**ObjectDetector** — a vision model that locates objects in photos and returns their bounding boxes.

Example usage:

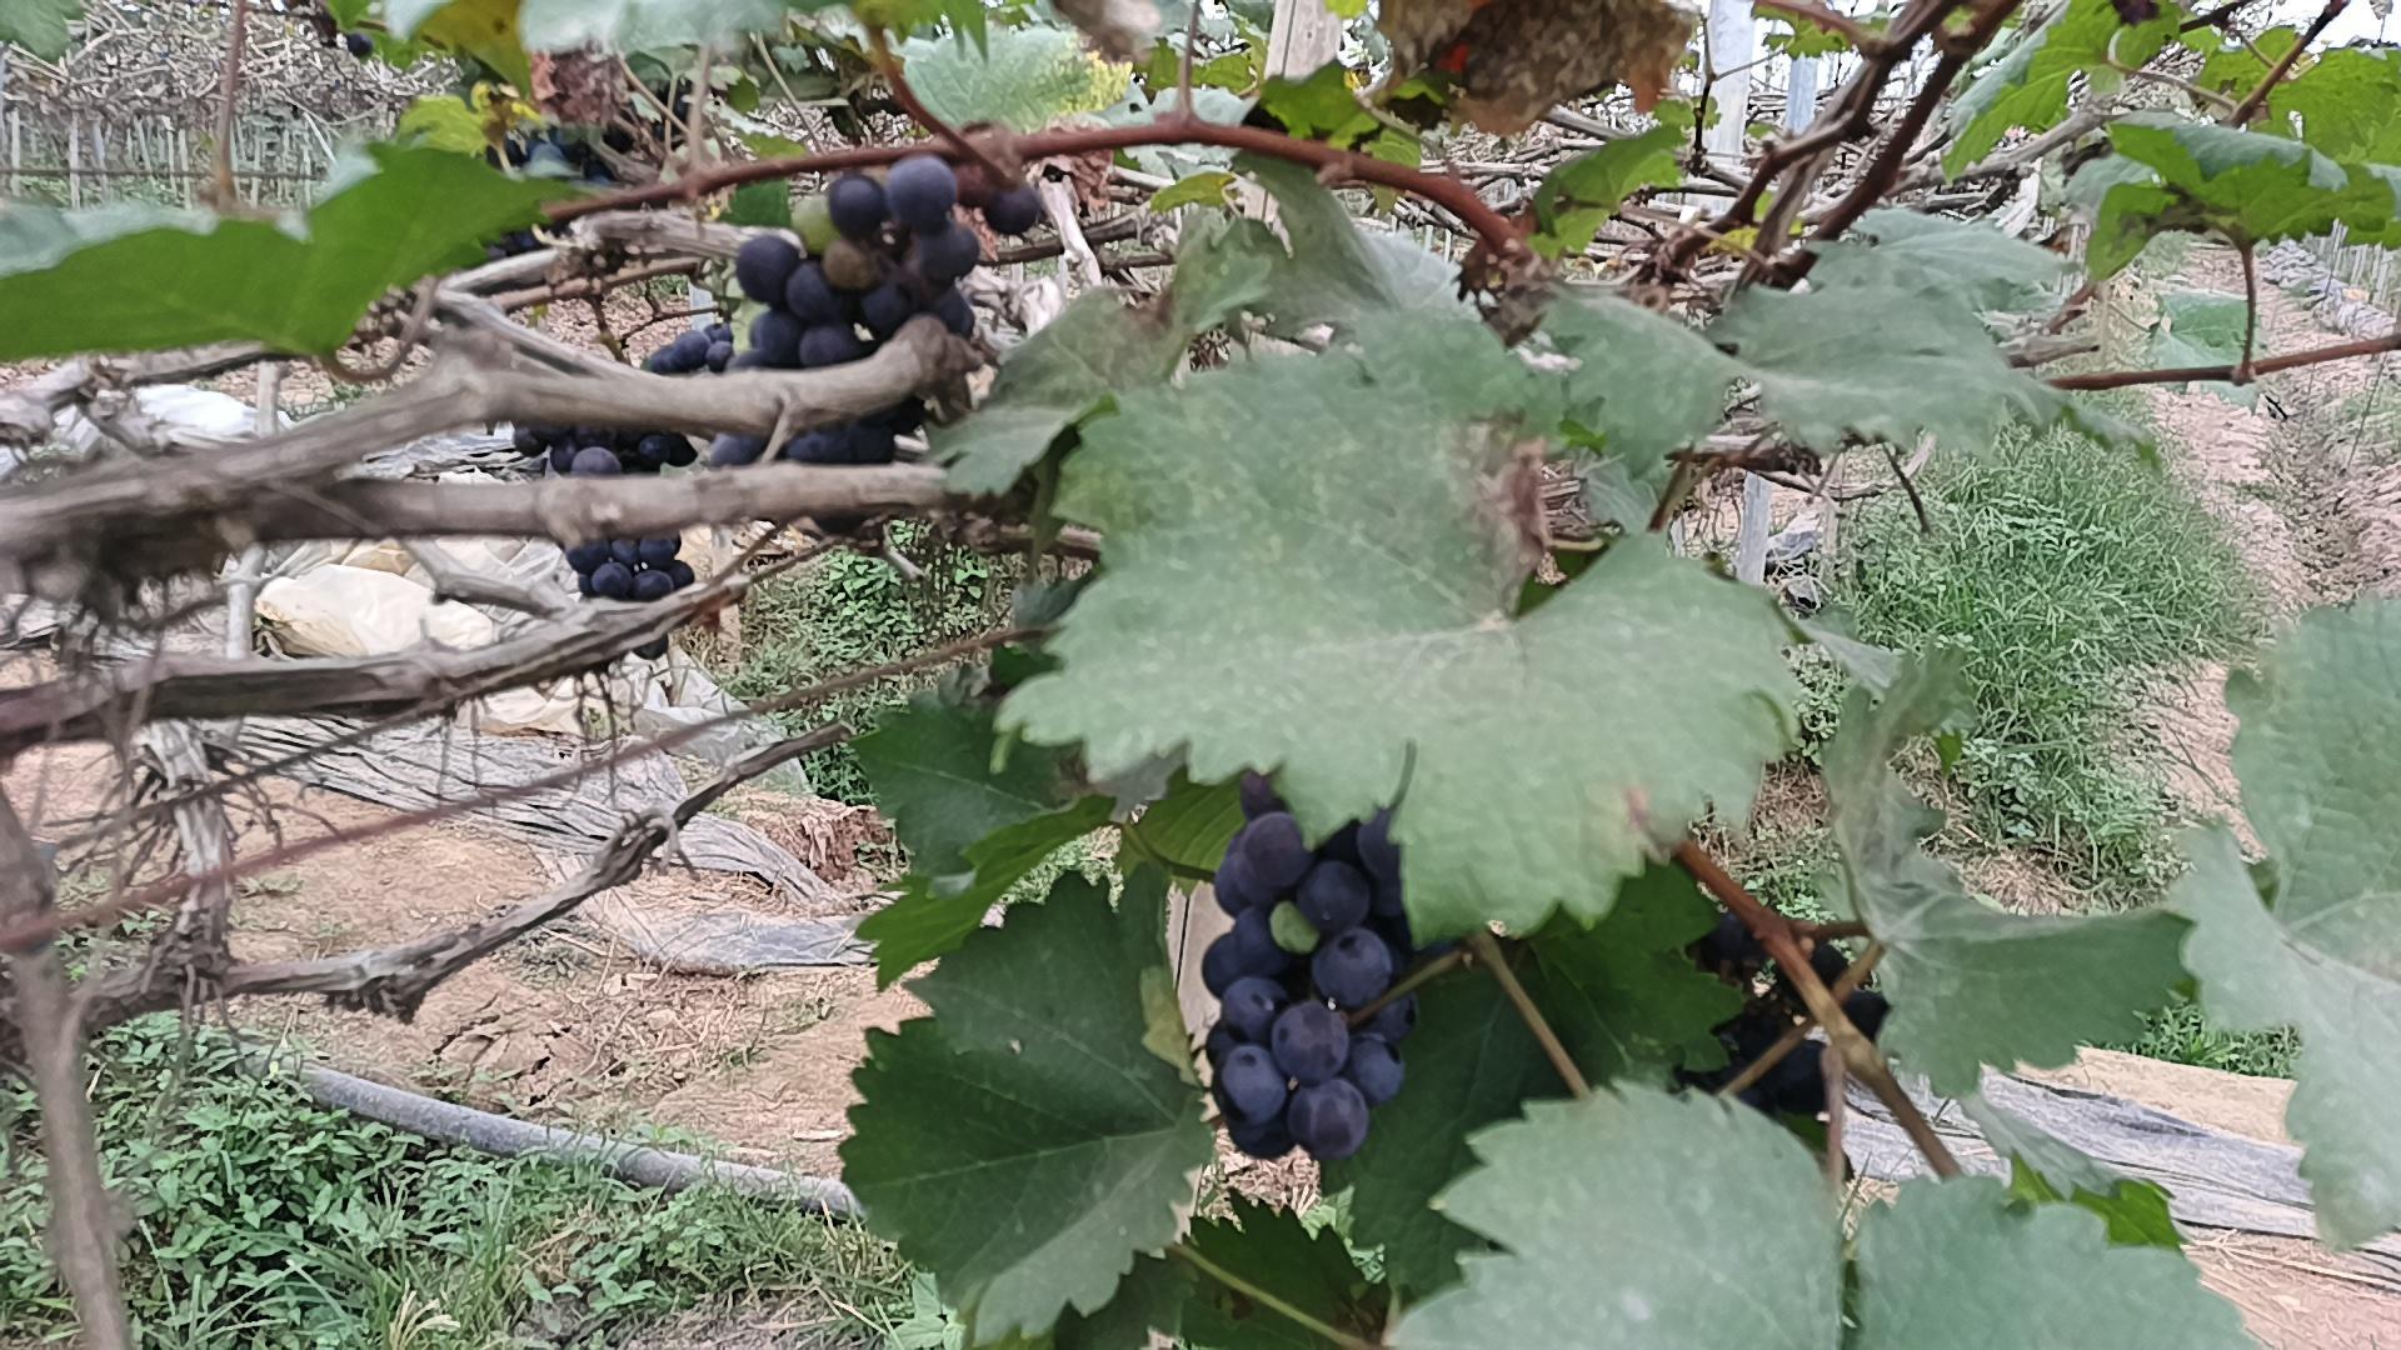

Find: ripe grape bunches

[705,156,1045,536]
[510,321,738,660]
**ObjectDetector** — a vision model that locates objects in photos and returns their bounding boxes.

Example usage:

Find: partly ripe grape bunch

[1200,770,1417,1160]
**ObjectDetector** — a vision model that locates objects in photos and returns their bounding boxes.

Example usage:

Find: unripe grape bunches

[1772,936,1893,1042]
[1673,911,1828,1121]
